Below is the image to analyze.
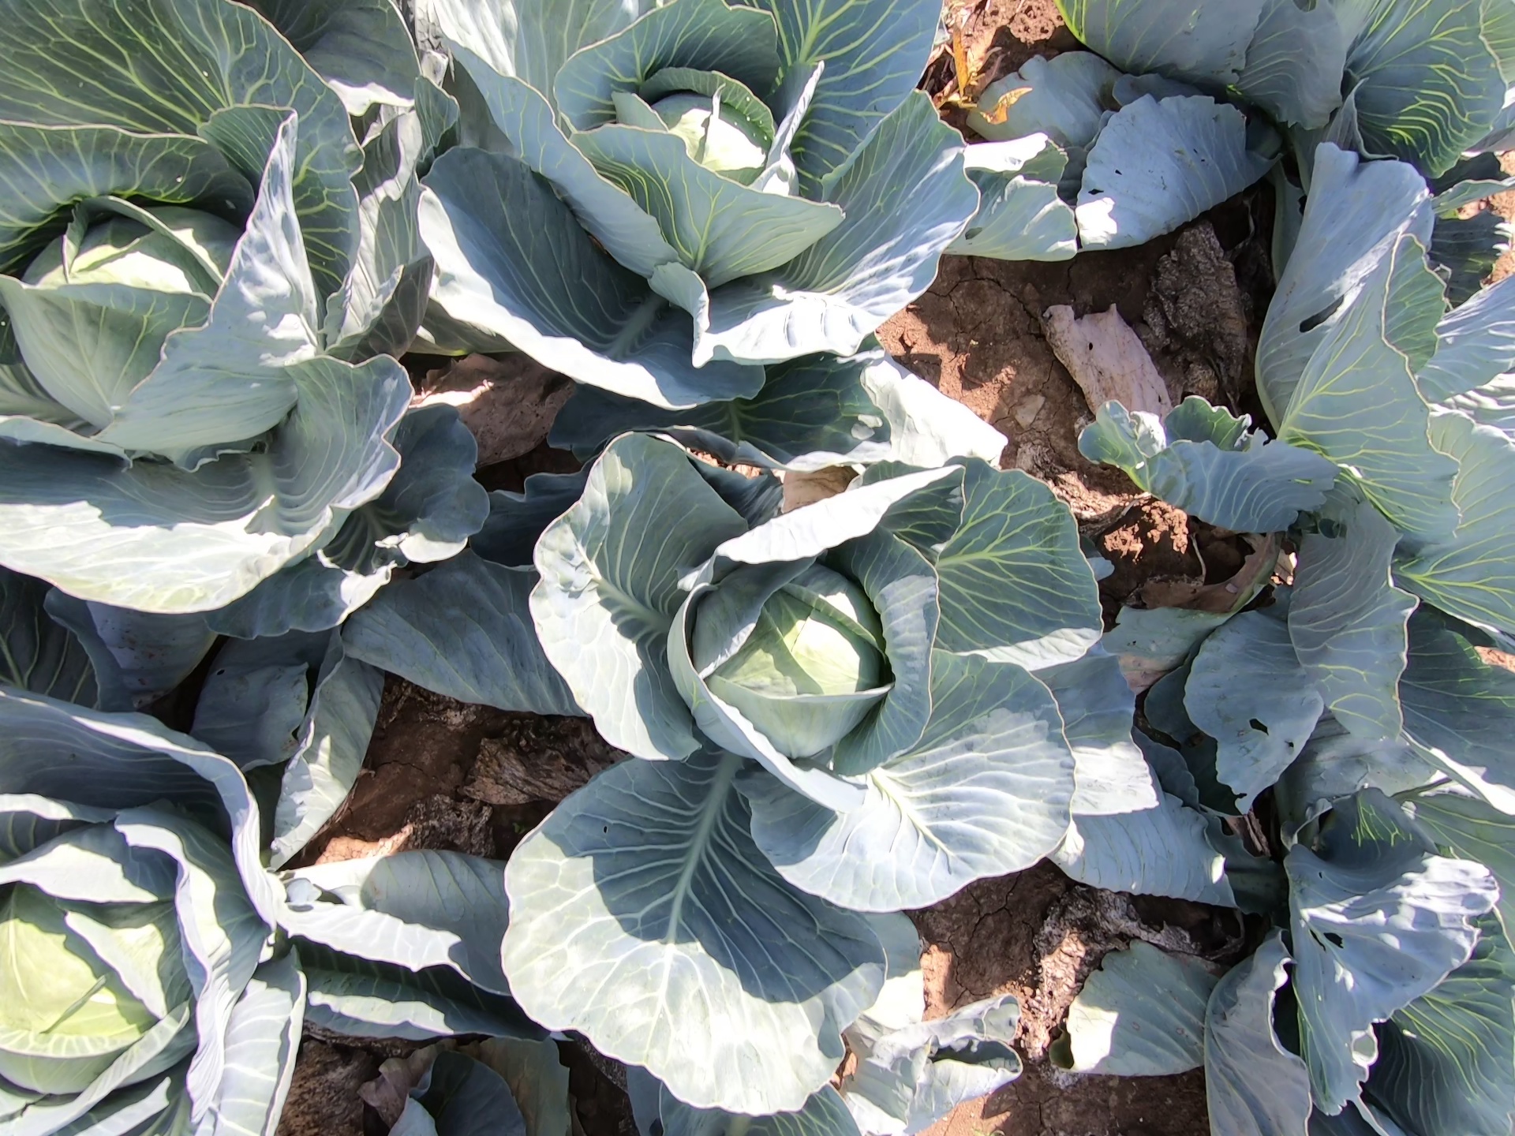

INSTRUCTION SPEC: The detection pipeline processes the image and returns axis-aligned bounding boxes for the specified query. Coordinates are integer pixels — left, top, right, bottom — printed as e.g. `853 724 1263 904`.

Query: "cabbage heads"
2 828 239 1087
645 88 790 252
694 564 885 756
17 202 298 441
